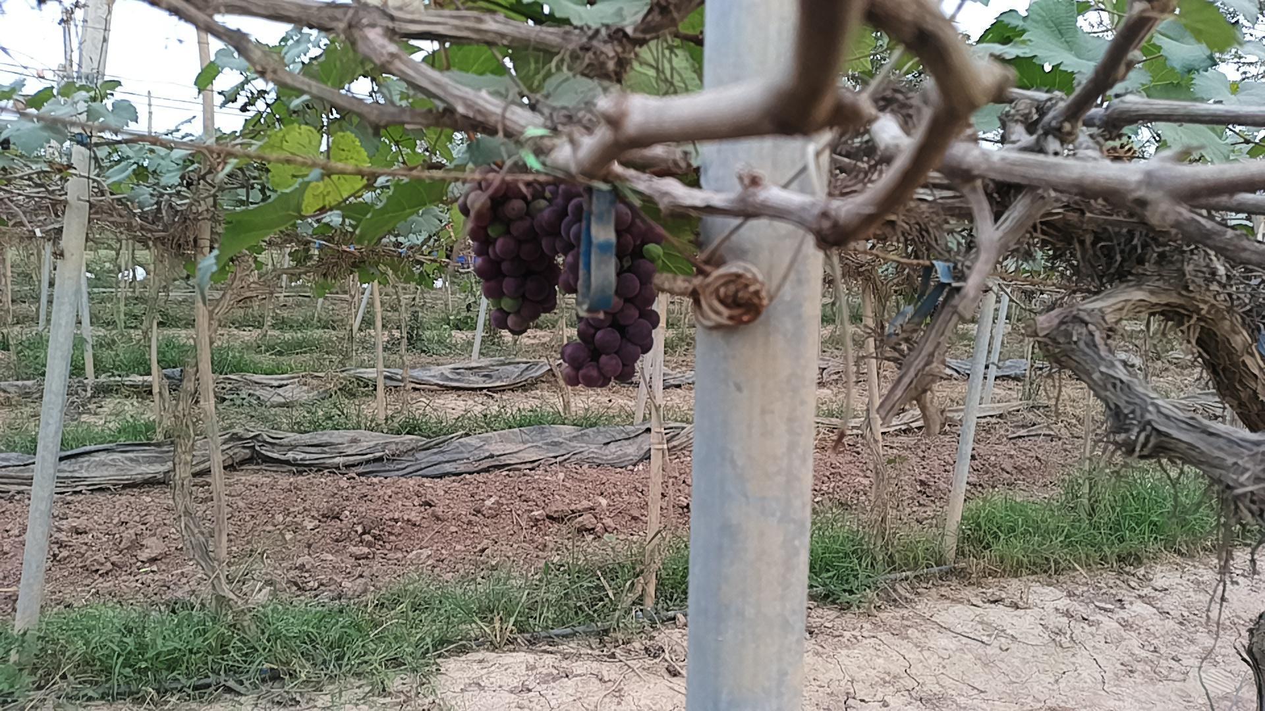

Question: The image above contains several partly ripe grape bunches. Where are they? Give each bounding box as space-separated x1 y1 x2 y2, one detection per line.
534 184 666 387
459 165 559 335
